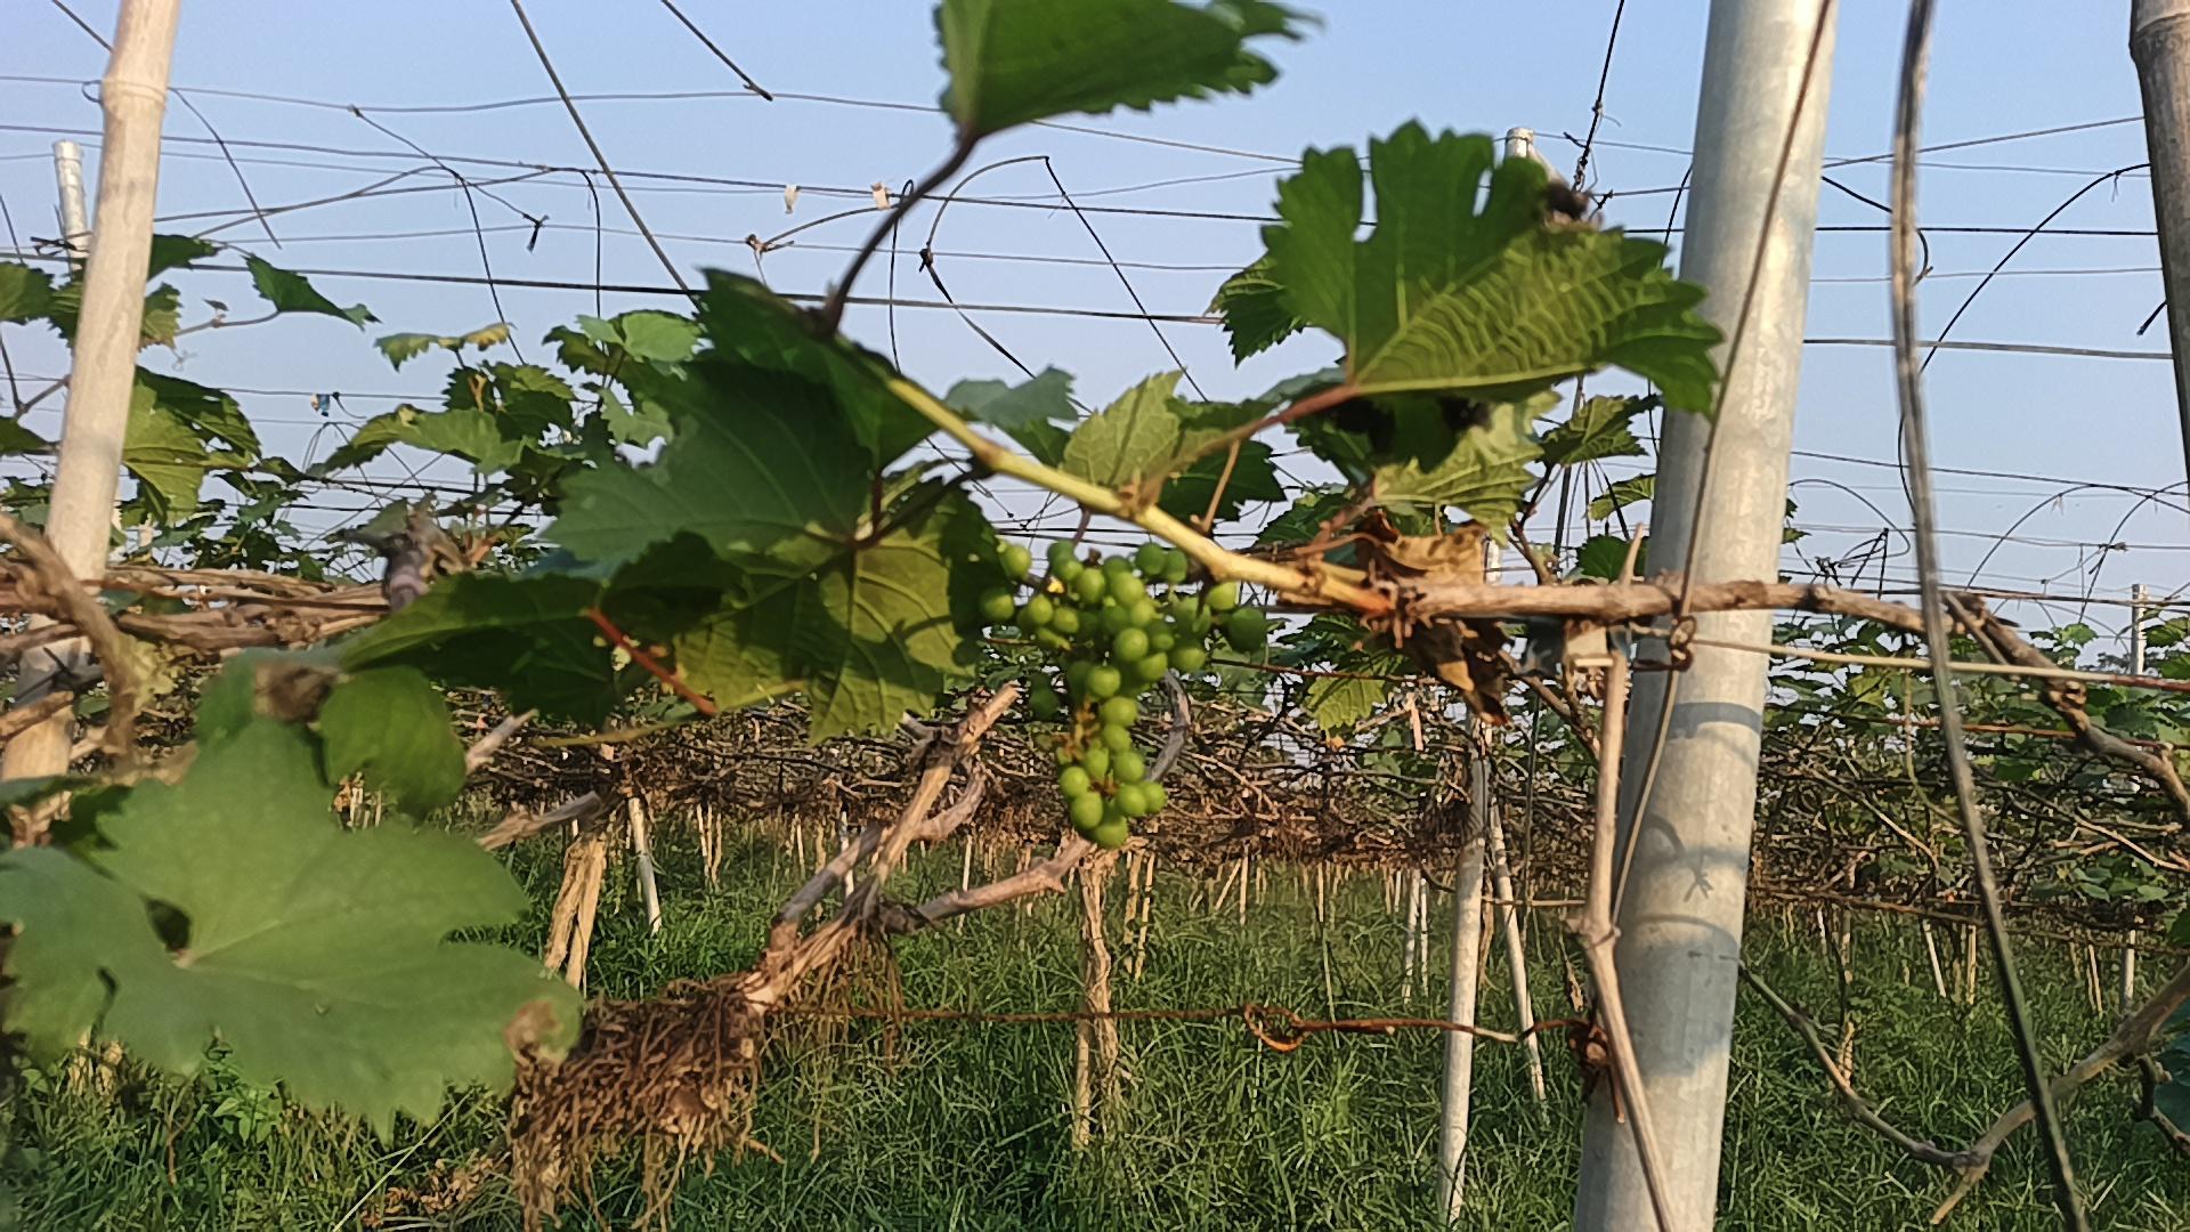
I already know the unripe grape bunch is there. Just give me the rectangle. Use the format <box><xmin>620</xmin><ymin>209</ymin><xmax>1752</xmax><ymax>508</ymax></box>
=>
<box><xmin>980</xmin><ymin>537</ymin><xmax>1266</xmax><ymax>846</ymax></box>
